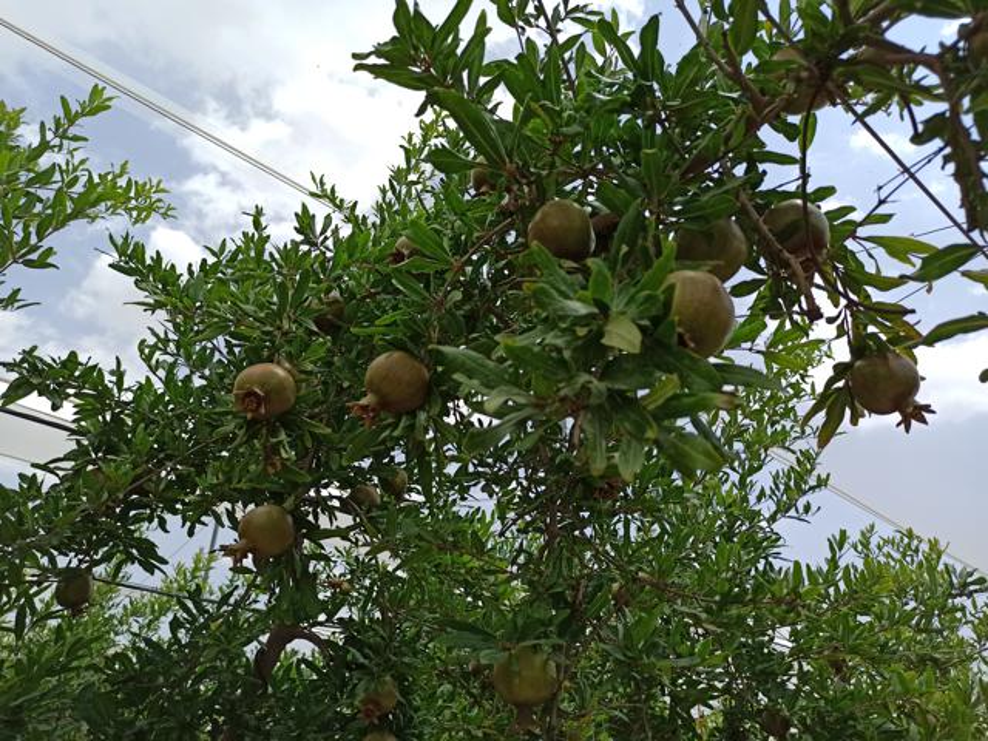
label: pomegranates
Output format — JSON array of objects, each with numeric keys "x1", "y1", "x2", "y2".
[
  {"x1": 355, "y1": 690, "x2": 397, "y2": 726},
  {"x1": 673, "y1": 221, "x2": 747, "y2": 284},
  {"x1": 54, "y1": 571, "x2": 91, "y2": 616},
  {"x1": 471, "y1": 154, "x2": 497, "y2": 196},
  {"x1": 346, "y1": 349, "x2": 431, "y2": 429},
  {"x1": 218, "y1": 503, "x2": 296, "y2": 570},
  {"x1": 770, "y1": 46, "x2": 838, "y2": 113},
  {"x1": 526, "y1": 199, "x2": 596, "y2": 264},
  {"x1": 363, "y1": 729, "x2": 398, "y2": 741},
  {"x1": 492, "y1": 653, "x2": 559, "y2": 730},
  {"x1": 761, "y1": 709, "x2": 790, "y2": 741},
  {"x1": 386, "y1": 235, "x2": 420, "y2": 266},
  {"x1": 380, "y1": 469, "x2": 408, "y2": 503},
  {"x1": 849, "y1": 354, "x2": 937, "y2": 434},
  {"x1": 350, "y1": 486, "x2": 381, "y2": 509},
  {"x1": 232, "y1": 361, "x2": 298, "y2": 420},
  {"x1": 761, "y1": 198, "x2": 829, "y2": 253},
  {"x1": 670, "y1": 269, "x2": 735, "y2": 358}
]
